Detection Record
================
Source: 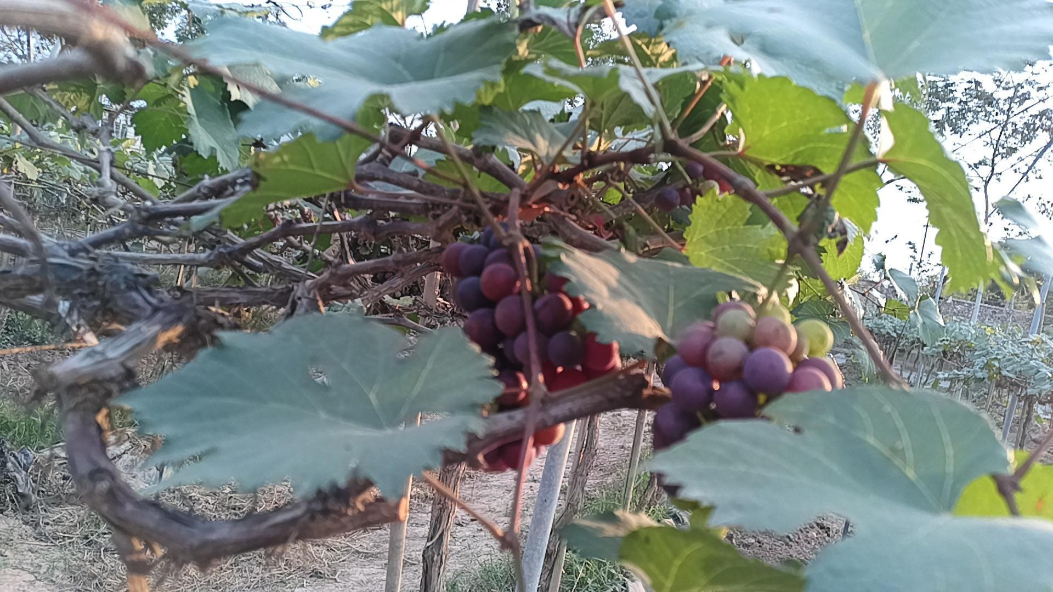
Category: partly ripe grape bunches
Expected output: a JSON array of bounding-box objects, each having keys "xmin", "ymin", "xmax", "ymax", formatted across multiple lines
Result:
[
  {"xmin": 652, "ymin": 160, "xmax": 736, "ymax": 215},
  {"xmin": 653, "ymin": 301, "xmax": 841, "ymax": 452}
]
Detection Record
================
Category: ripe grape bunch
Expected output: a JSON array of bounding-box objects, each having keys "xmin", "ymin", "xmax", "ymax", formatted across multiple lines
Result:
[{"xmin": 443, "ymin": 219, "xmax": 622, "ymax": 473}]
